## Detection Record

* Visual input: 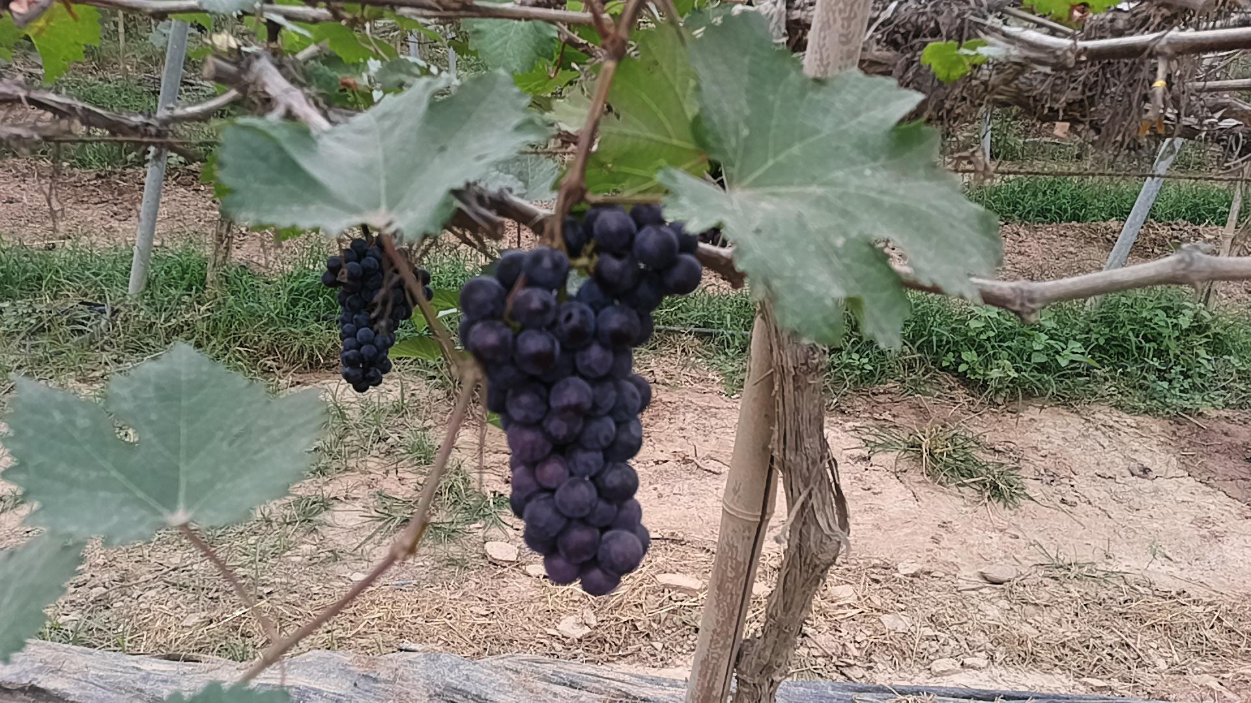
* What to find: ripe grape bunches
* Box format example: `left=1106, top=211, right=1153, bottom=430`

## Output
left=699, top=227, right=730, bottom=247
left=322, top=234, right=434, bottom=392
left=460, top=204, right=701, bottom=595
